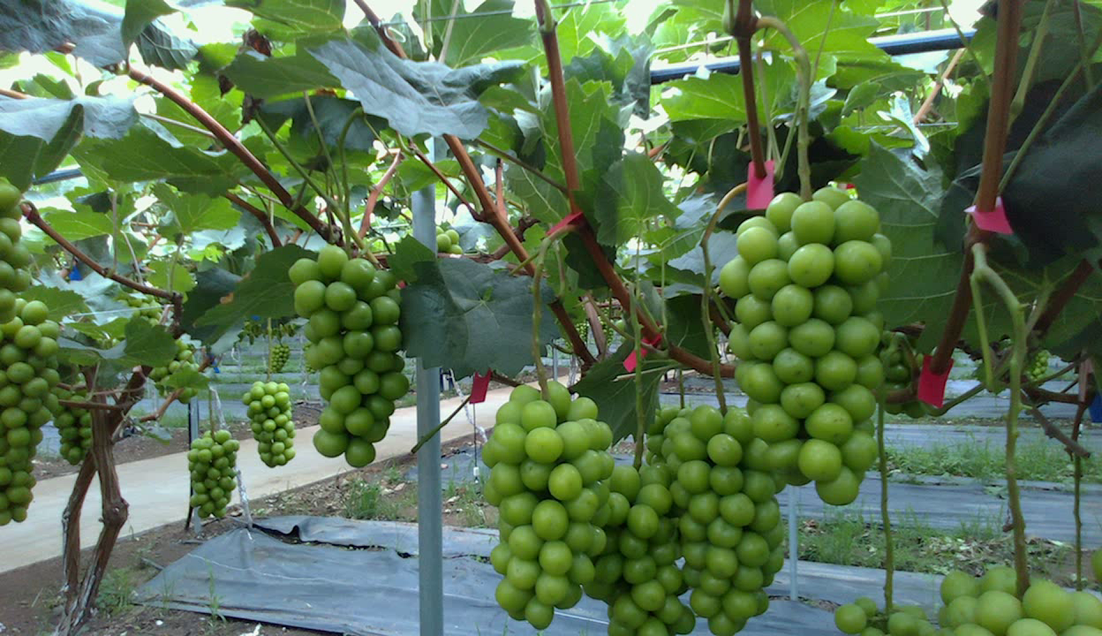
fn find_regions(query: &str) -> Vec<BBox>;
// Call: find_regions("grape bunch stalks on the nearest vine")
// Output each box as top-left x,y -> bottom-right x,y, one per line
756,17 -> 812,202
337,105 -> 364,261
532,224 -> 576,406
877,334 -> 919,618
630,285 -> 645,472
971,242 -> 1030,601
700,182 -> 748,417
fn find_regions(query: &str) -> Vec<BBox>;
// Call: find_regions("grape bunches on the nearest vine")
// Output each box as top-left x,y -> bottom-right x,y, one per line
0,294 -> 60,525
936,566 -> 1101,635
289,245 -> 410,468
660,405 -> 789,635
719,187 -> 892,505
580,459 -> 696,635
0,176 -> 33,323
834,599 -> 937,635
481,379 -> 614,630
